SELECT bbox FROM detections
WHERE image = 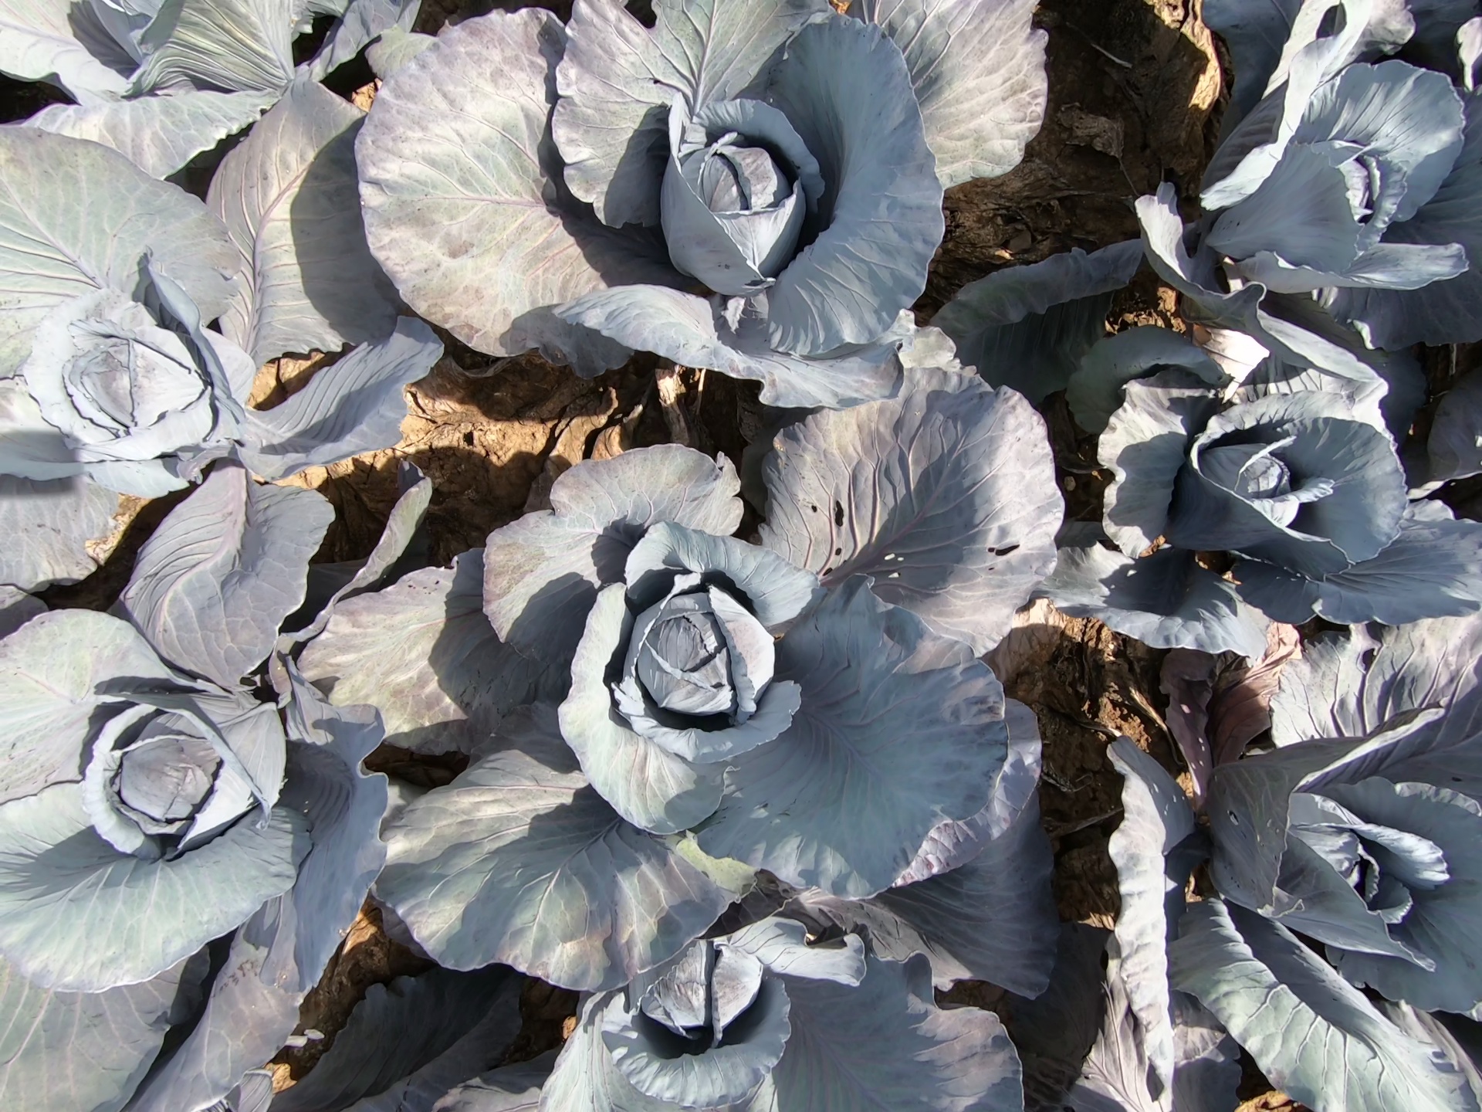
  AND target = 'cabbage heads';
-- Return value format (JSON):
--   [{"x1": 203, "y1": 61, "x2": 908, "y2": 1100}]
[
  {"x1": 1274, "y1": 147, "x2": 1380, "y2": 259},
  {"x1": 636, "y1": 591, "x2": 772, "y2": 716},
  {"x1": 90, "y1": 0, "x2": 224, "y2": 63},
  {"x1": 76, "y1": 328, "x2": 222, "y2": 437},
  {"x1": 668, "y1": 145, "x2": 800, "y2": 286},
  {"x1": 117, "y1": 697, "x2": 268, "y2": 840},
  {"x1": 645, "y1": 908, "x2": 766, "y2": 1029},
  {"x1": 1204, "y1": 444, "x2": 1296, "y2": 533},
  {"x1": 1271, "y1": 806, "x2": 1365, "y2": 900}
]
